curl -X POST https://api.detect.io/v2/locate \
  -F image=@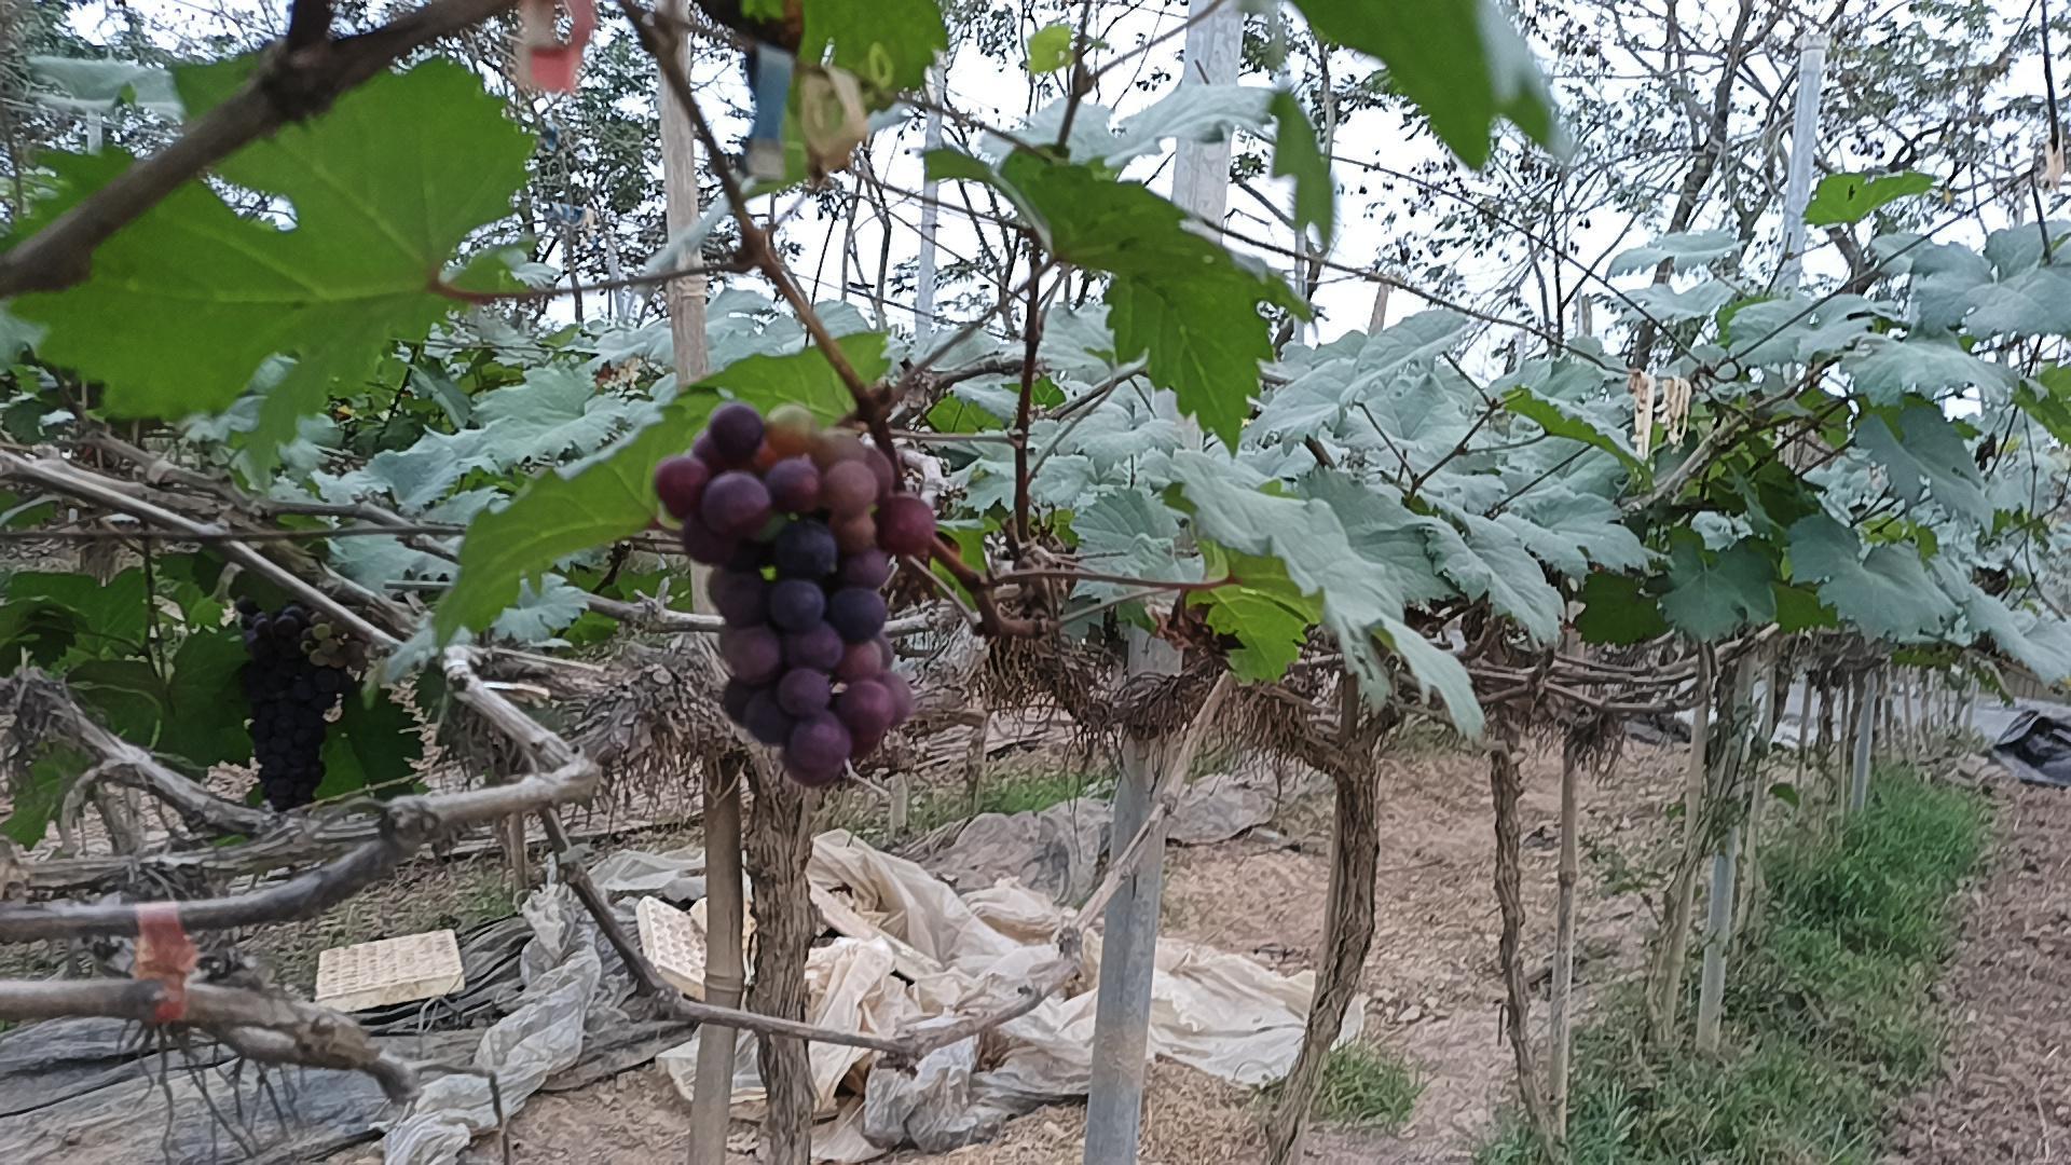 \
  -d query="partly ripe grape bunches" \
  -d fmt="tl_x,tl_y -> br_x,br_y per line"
234,591 -> 368,810
655,401 -> 936,786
